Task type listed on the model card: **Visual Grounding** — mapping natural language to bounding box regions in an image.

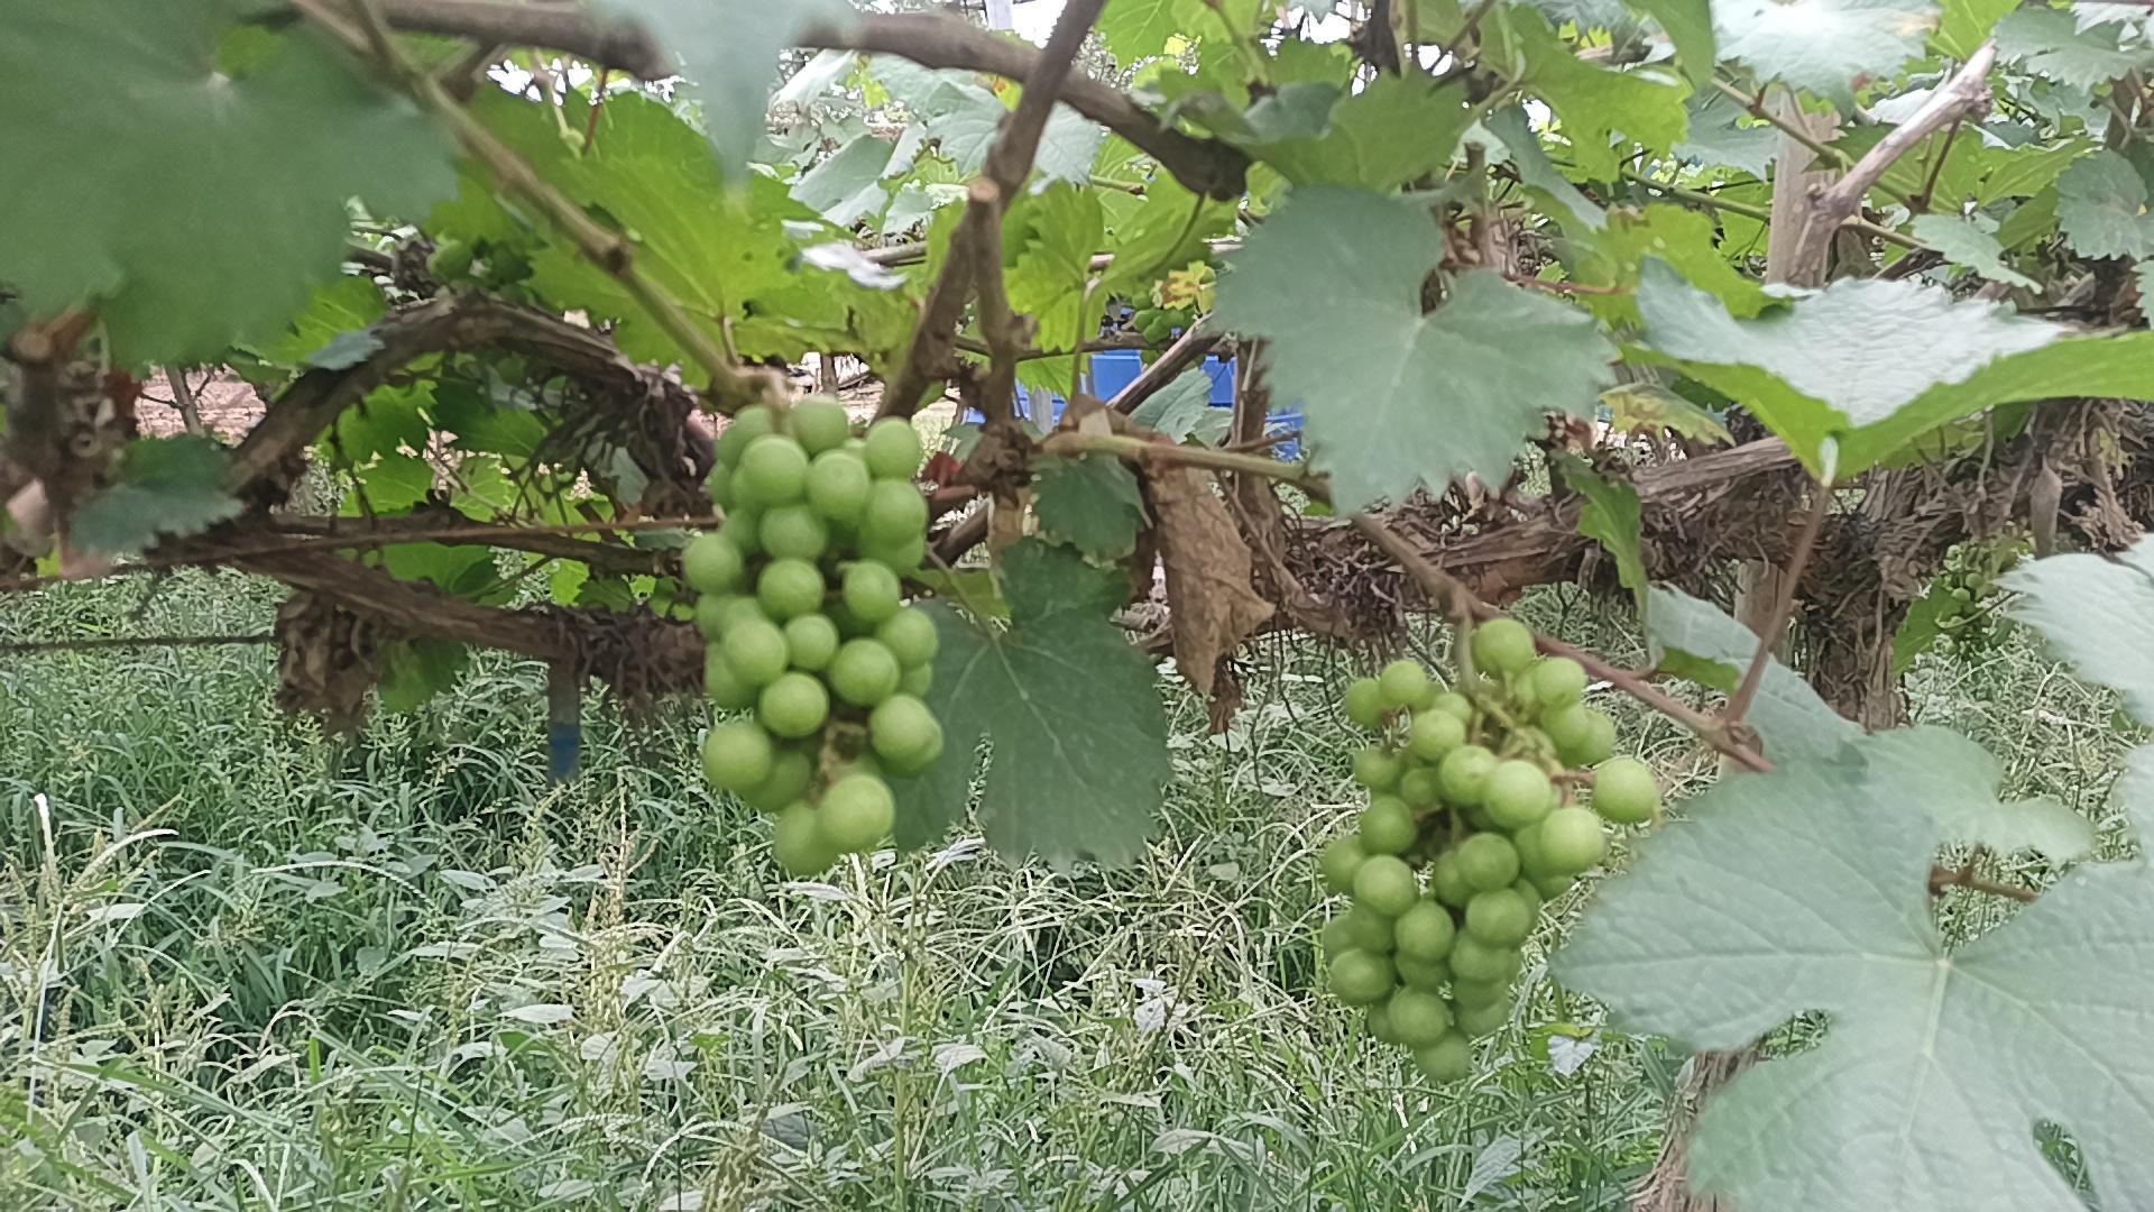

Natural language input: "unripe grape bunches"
[1319,618,1658,1081]
[683,398,943,875]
